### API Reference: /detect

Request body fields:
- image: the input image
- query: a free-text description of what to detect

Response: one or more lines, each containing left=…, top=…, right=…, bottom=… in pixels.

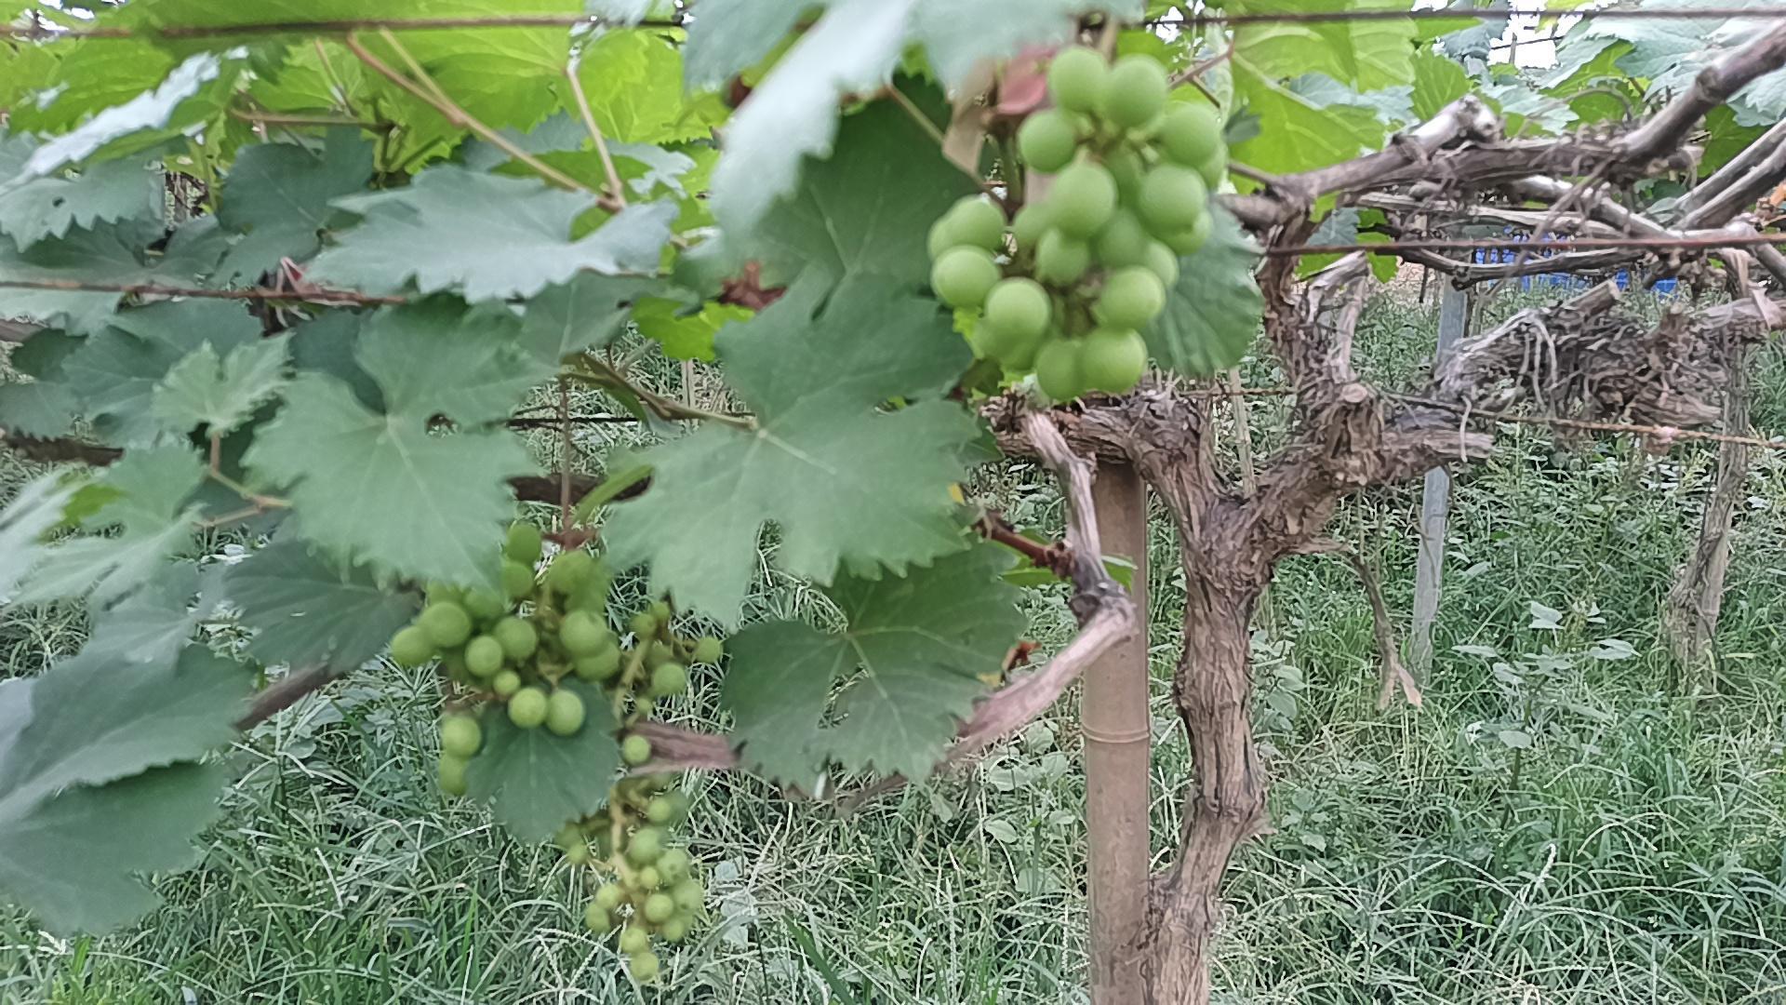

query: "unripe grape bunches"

left=558, top=597, right=722, bottom=984
left=927, top=44, right=1226, bottom=400
left=391, top=522, right=620, bottom=795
